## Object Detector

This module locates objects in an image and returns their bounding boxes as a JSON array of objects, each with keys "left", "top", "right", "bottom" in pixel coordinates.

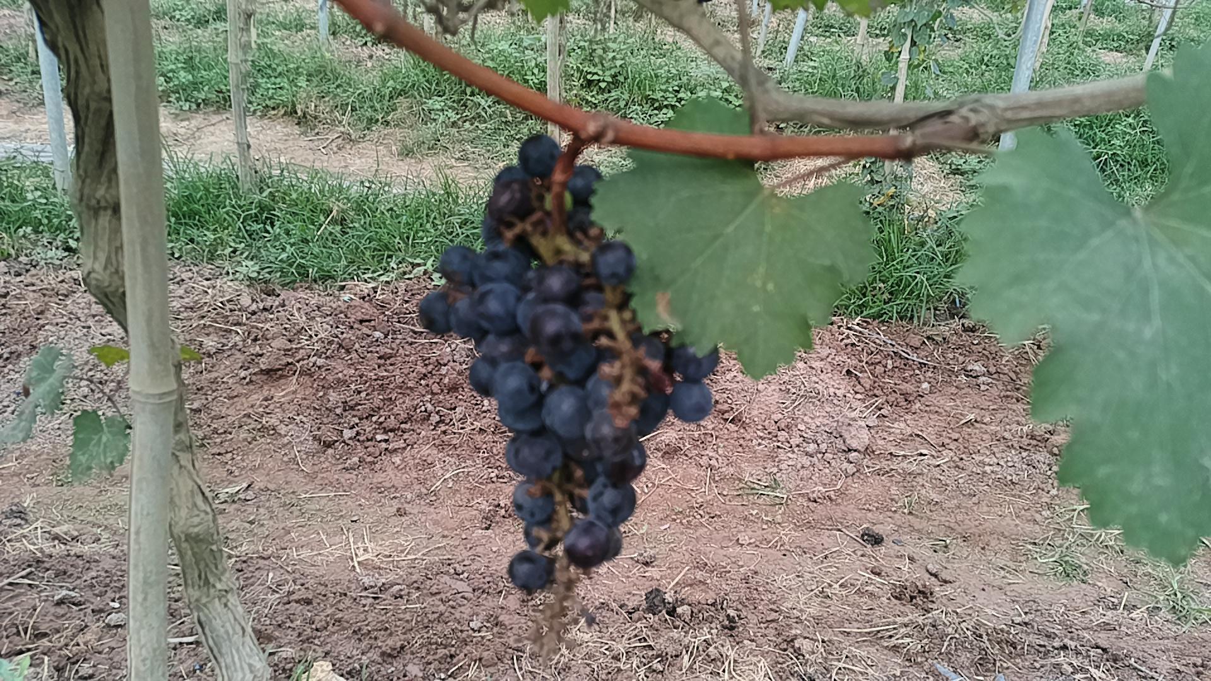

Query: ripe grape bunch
[{"left": 419, "top": 135, "right": 718, "bottom": 591}]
